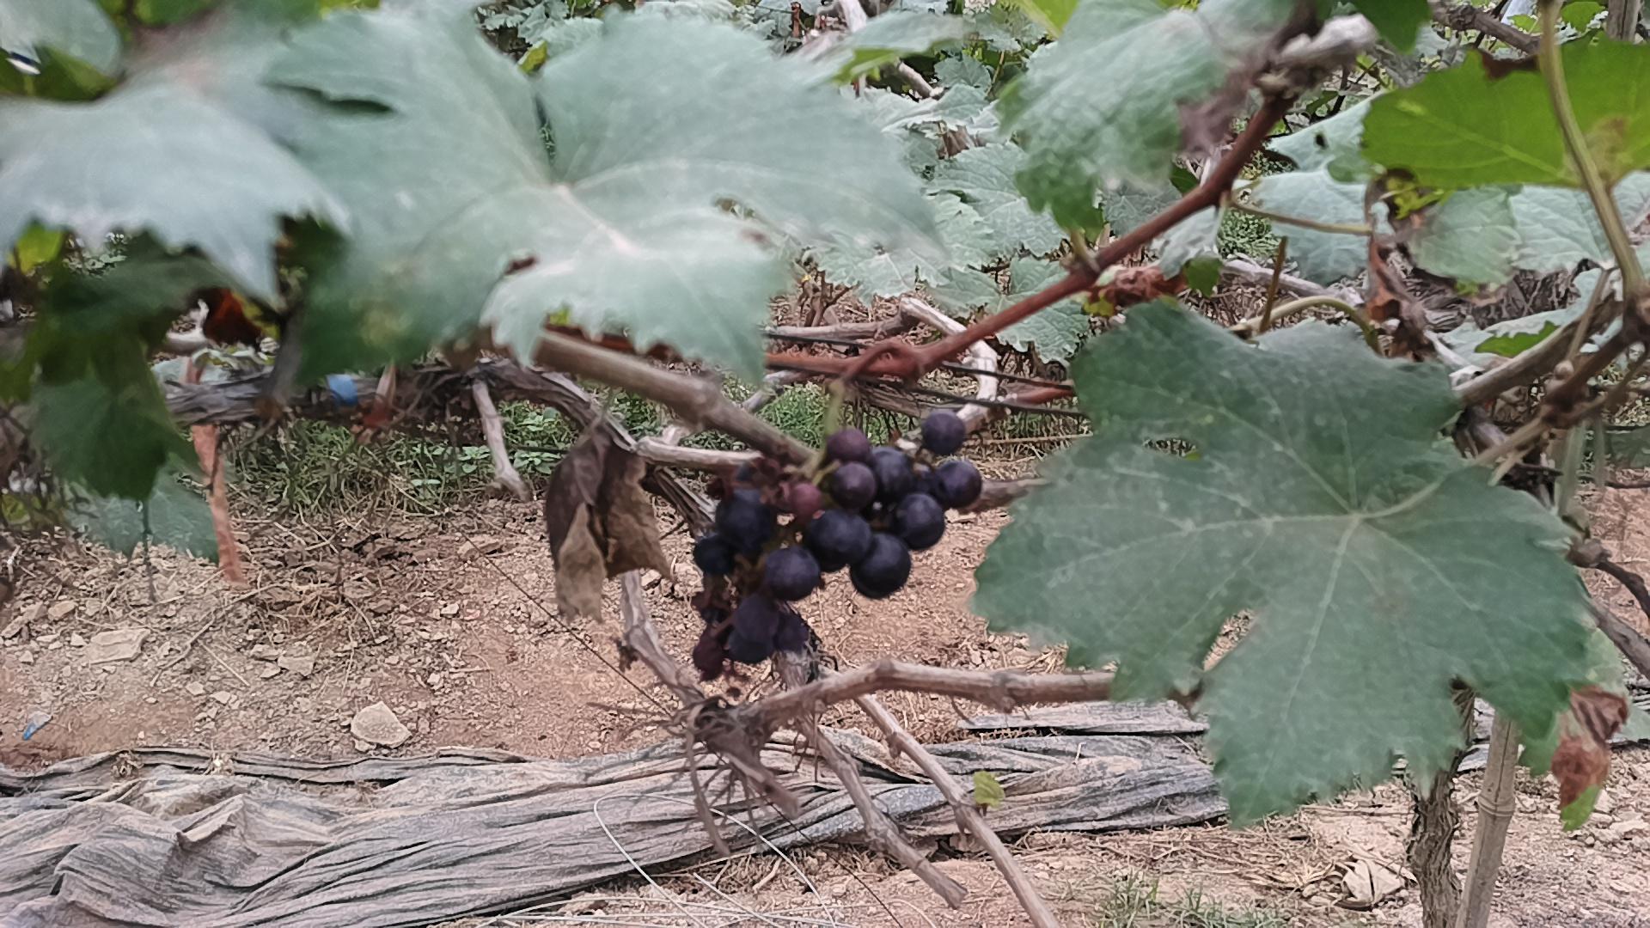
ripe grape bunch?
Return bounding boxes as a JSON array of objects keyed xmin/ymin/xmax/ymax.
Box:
[{"xmin": 693, "ymin": 411, "xmax": 981, "ymax": 680}]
